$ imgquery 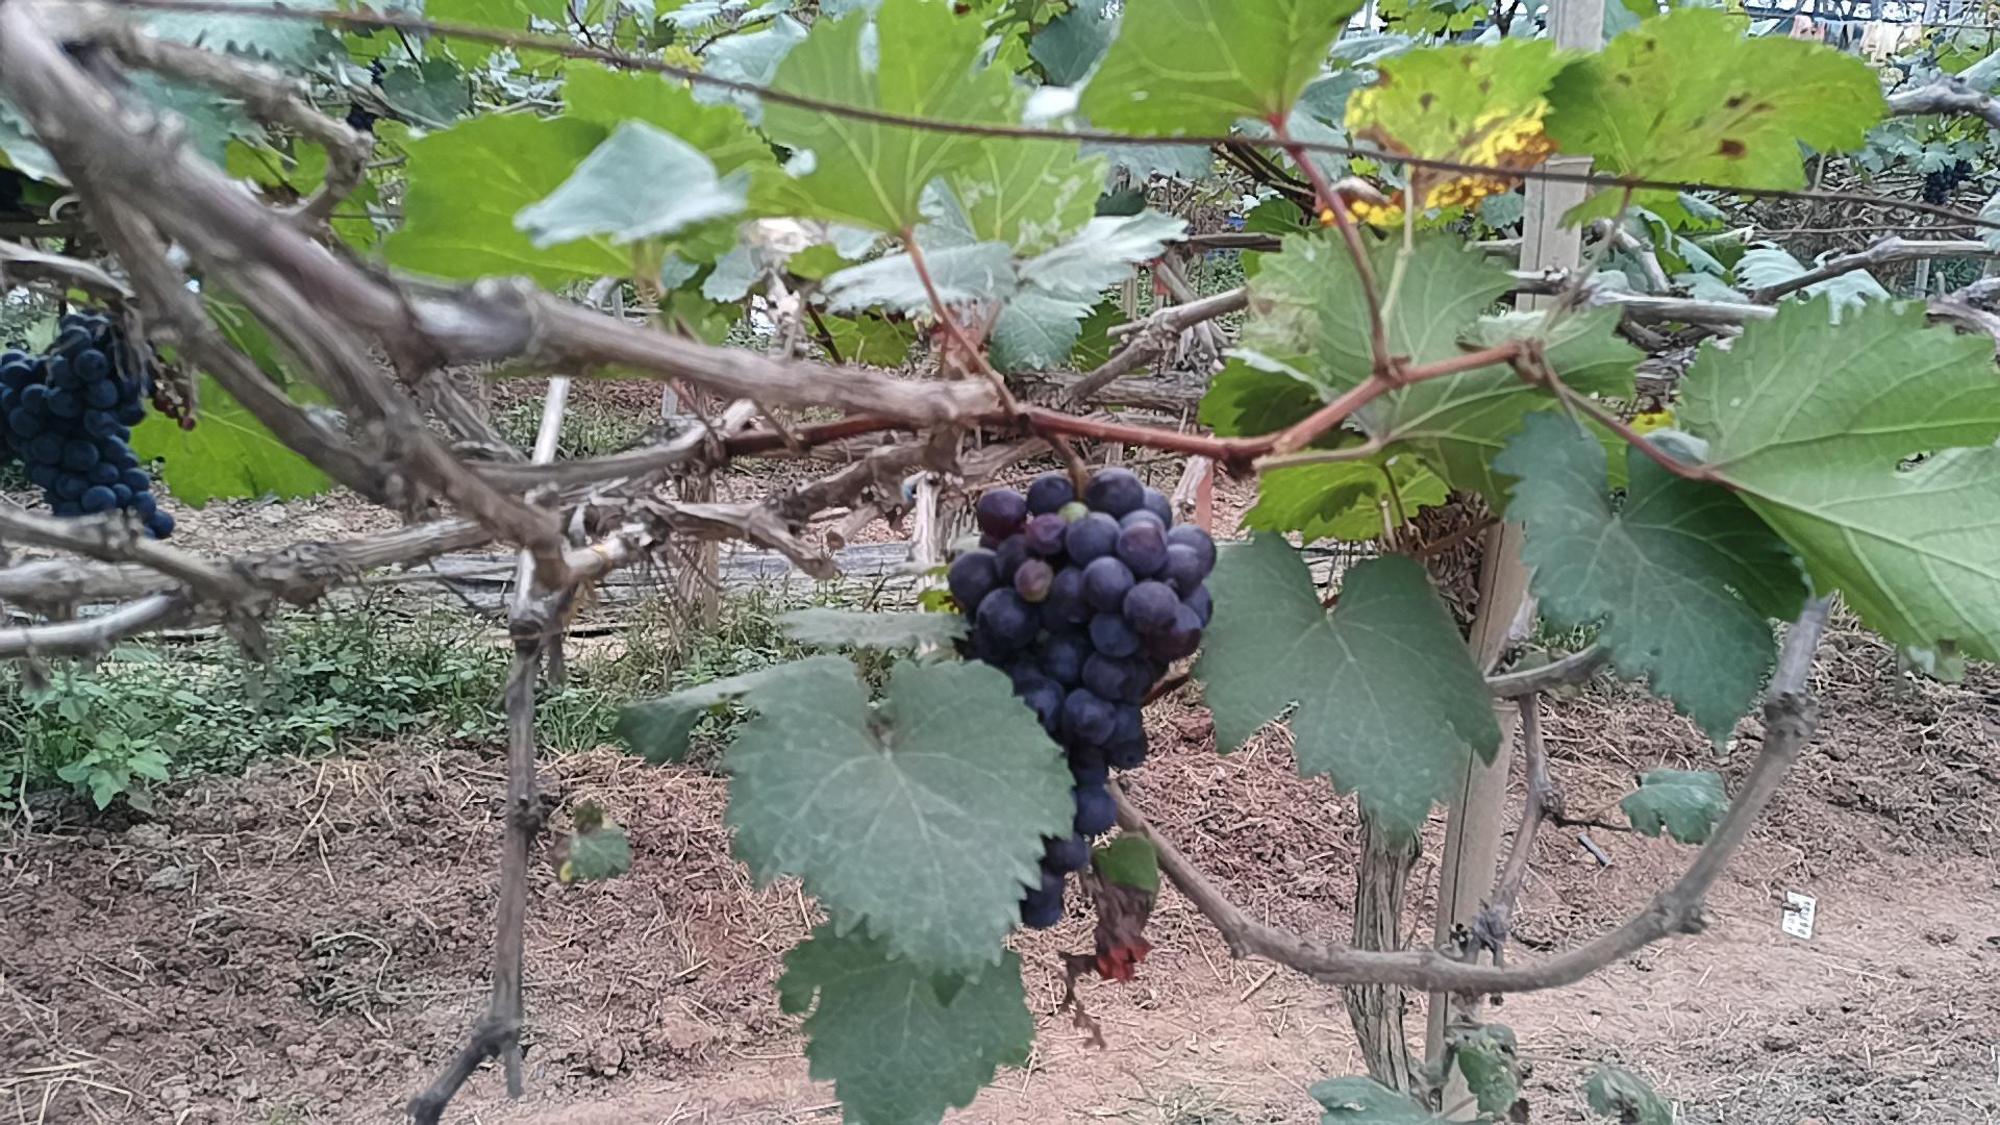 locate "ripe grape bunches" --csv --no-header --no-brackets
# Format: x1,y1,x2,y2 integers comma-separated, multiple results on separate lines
1921,159,1971,204
0,310,174,537
948,468,1216,928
